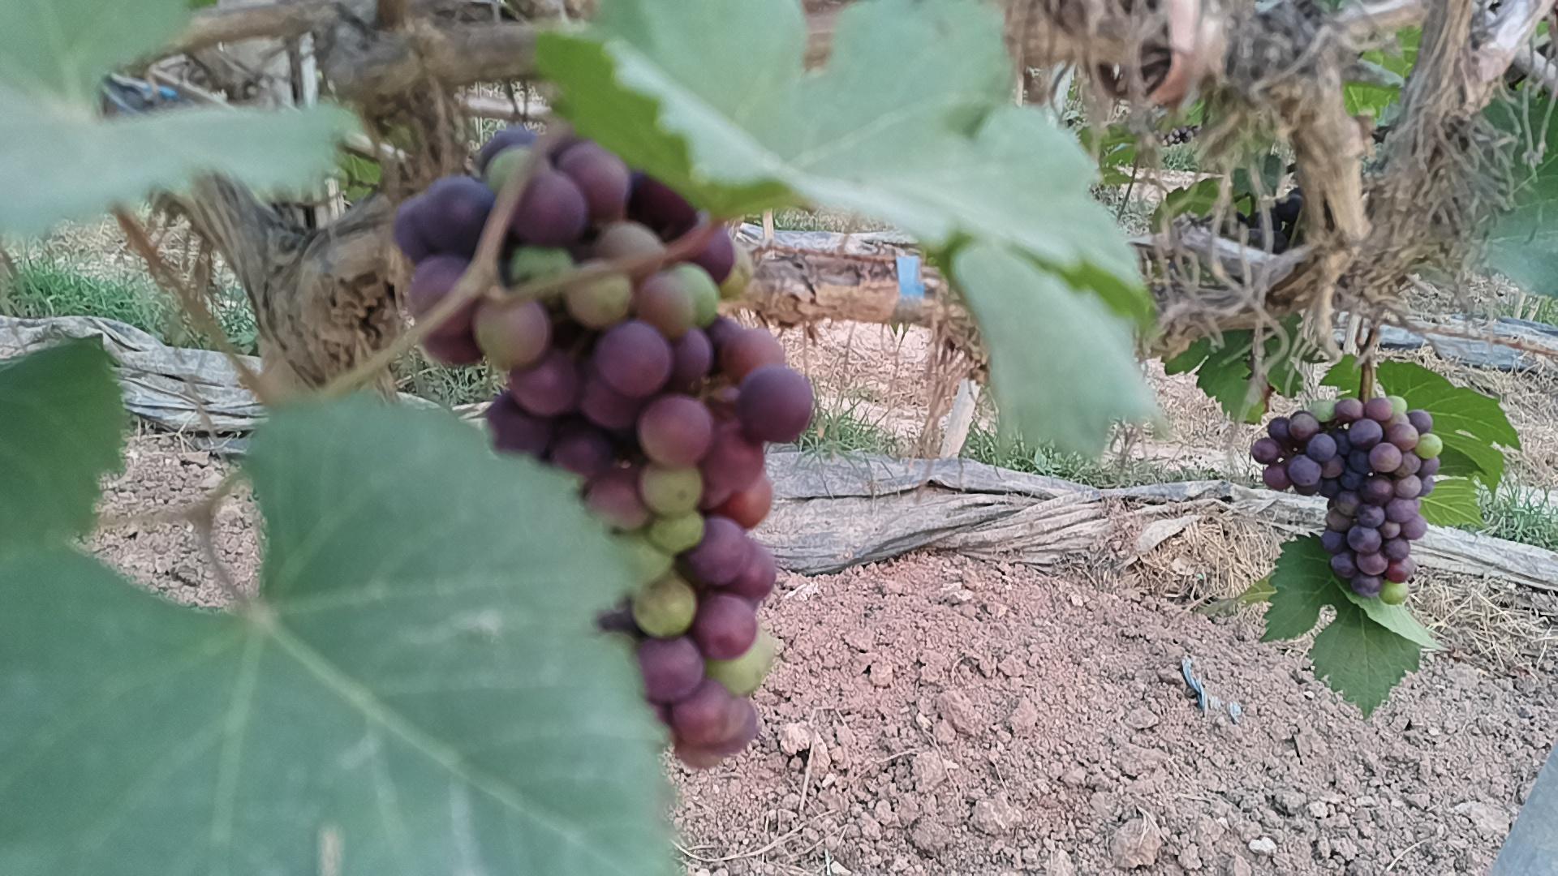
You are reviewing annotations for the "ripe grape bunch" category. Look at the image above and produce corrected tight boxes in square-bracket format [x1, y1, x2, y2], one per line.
[1246, 187, 1305, 254]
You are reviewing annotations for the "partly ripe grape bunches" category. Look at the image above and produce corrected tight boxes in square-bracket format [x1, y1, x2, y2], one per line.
[1253, 397, 1441, 604]
[389, 125, 812, 765]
